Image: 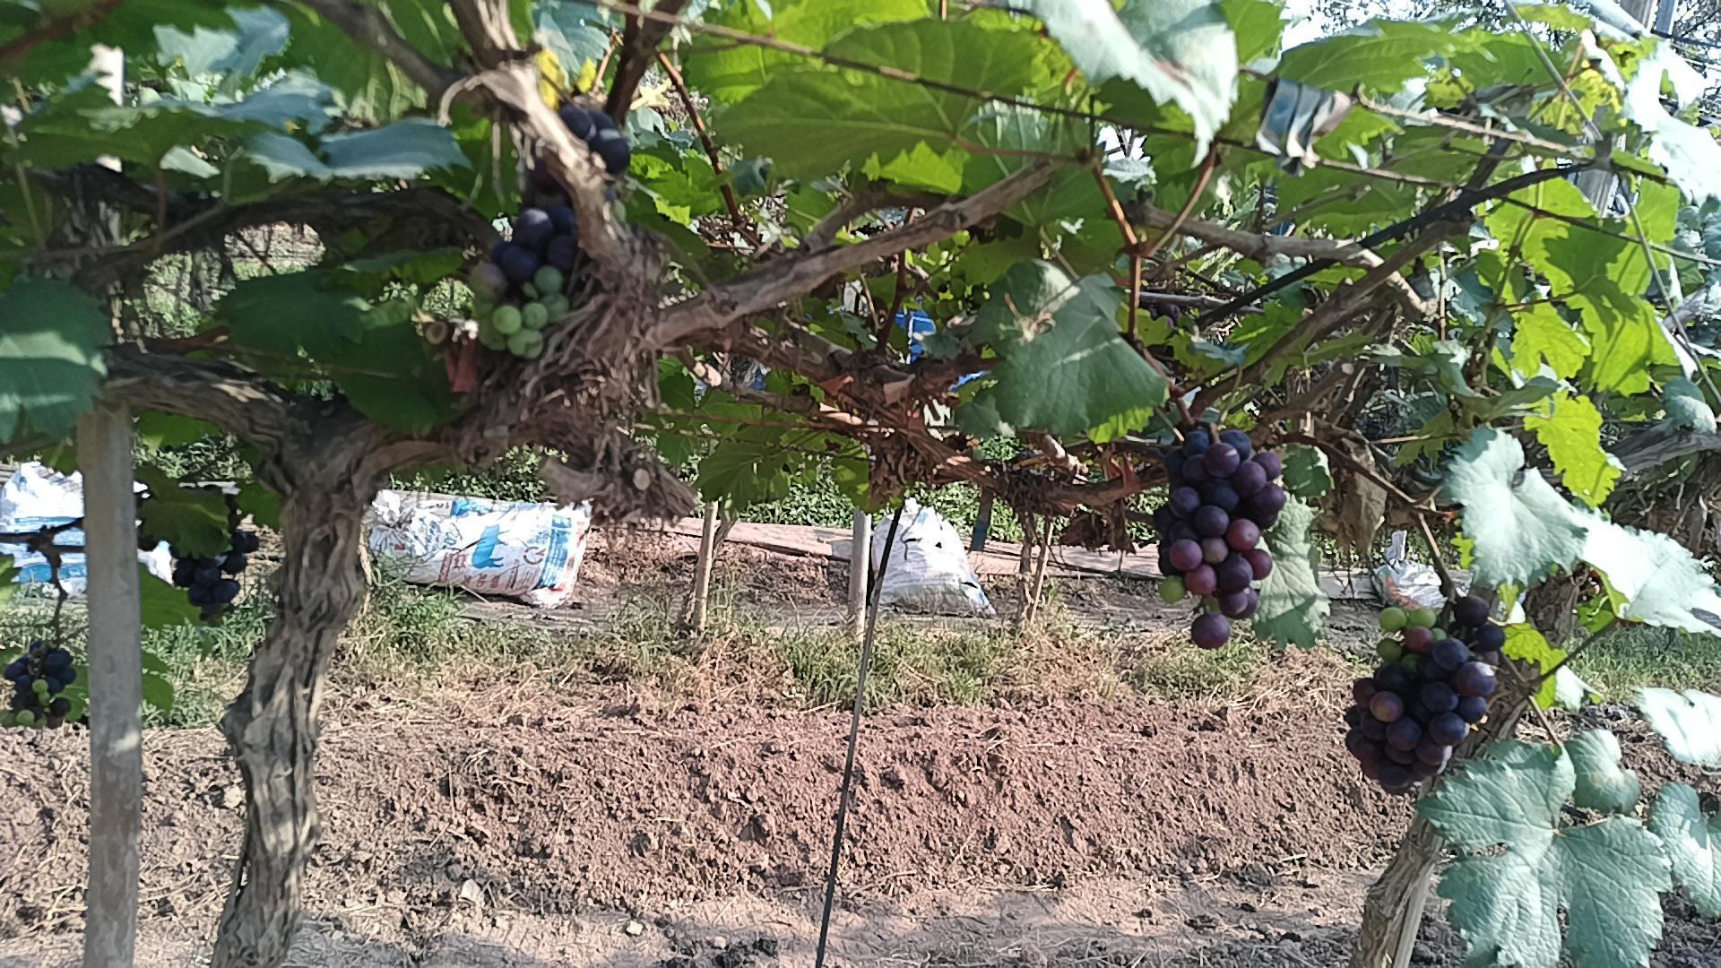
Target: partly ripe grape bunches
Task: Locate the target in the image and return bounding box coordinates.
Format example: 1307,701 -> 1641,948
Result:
0,639 -> 87,729
1152,428 -> 1286,649
1345,596 -> 1505,796
469,103 -> 629,358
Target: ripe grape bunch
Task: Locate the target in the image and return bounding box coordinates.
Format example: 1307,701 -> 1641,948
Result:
136,482 -> 259,622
